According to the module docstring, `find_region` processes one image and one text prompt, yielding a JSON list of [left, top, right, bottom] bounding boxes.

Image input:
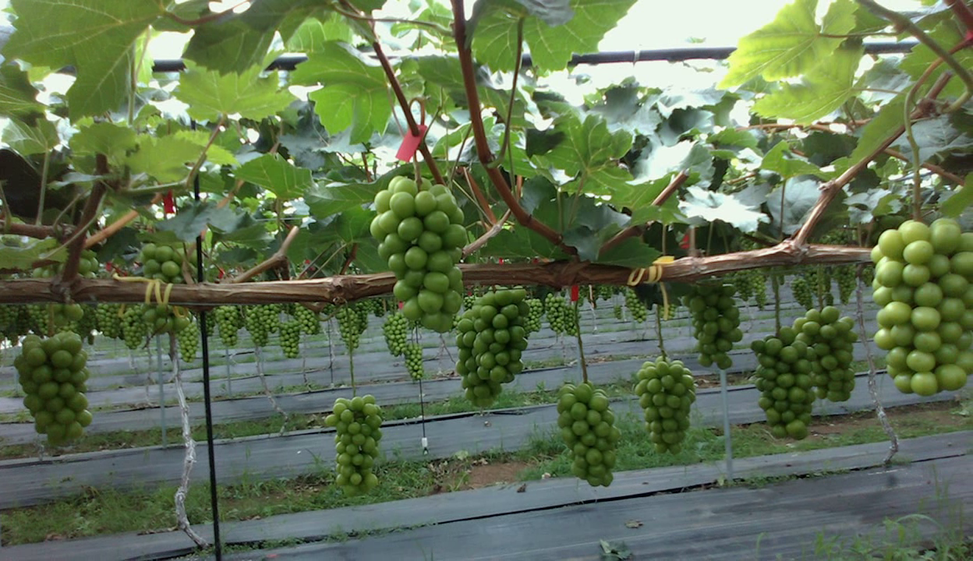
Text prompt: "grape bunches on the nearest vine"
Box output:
[[870, 219, 972, 396], [370, 175, 466, 333]]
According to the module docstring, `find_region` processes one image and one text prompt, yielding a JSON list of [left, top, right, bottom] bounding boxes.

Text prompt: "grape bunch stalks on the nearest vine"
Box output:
[[412, 154, 422, 191], [904, 61, 938, 221]]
